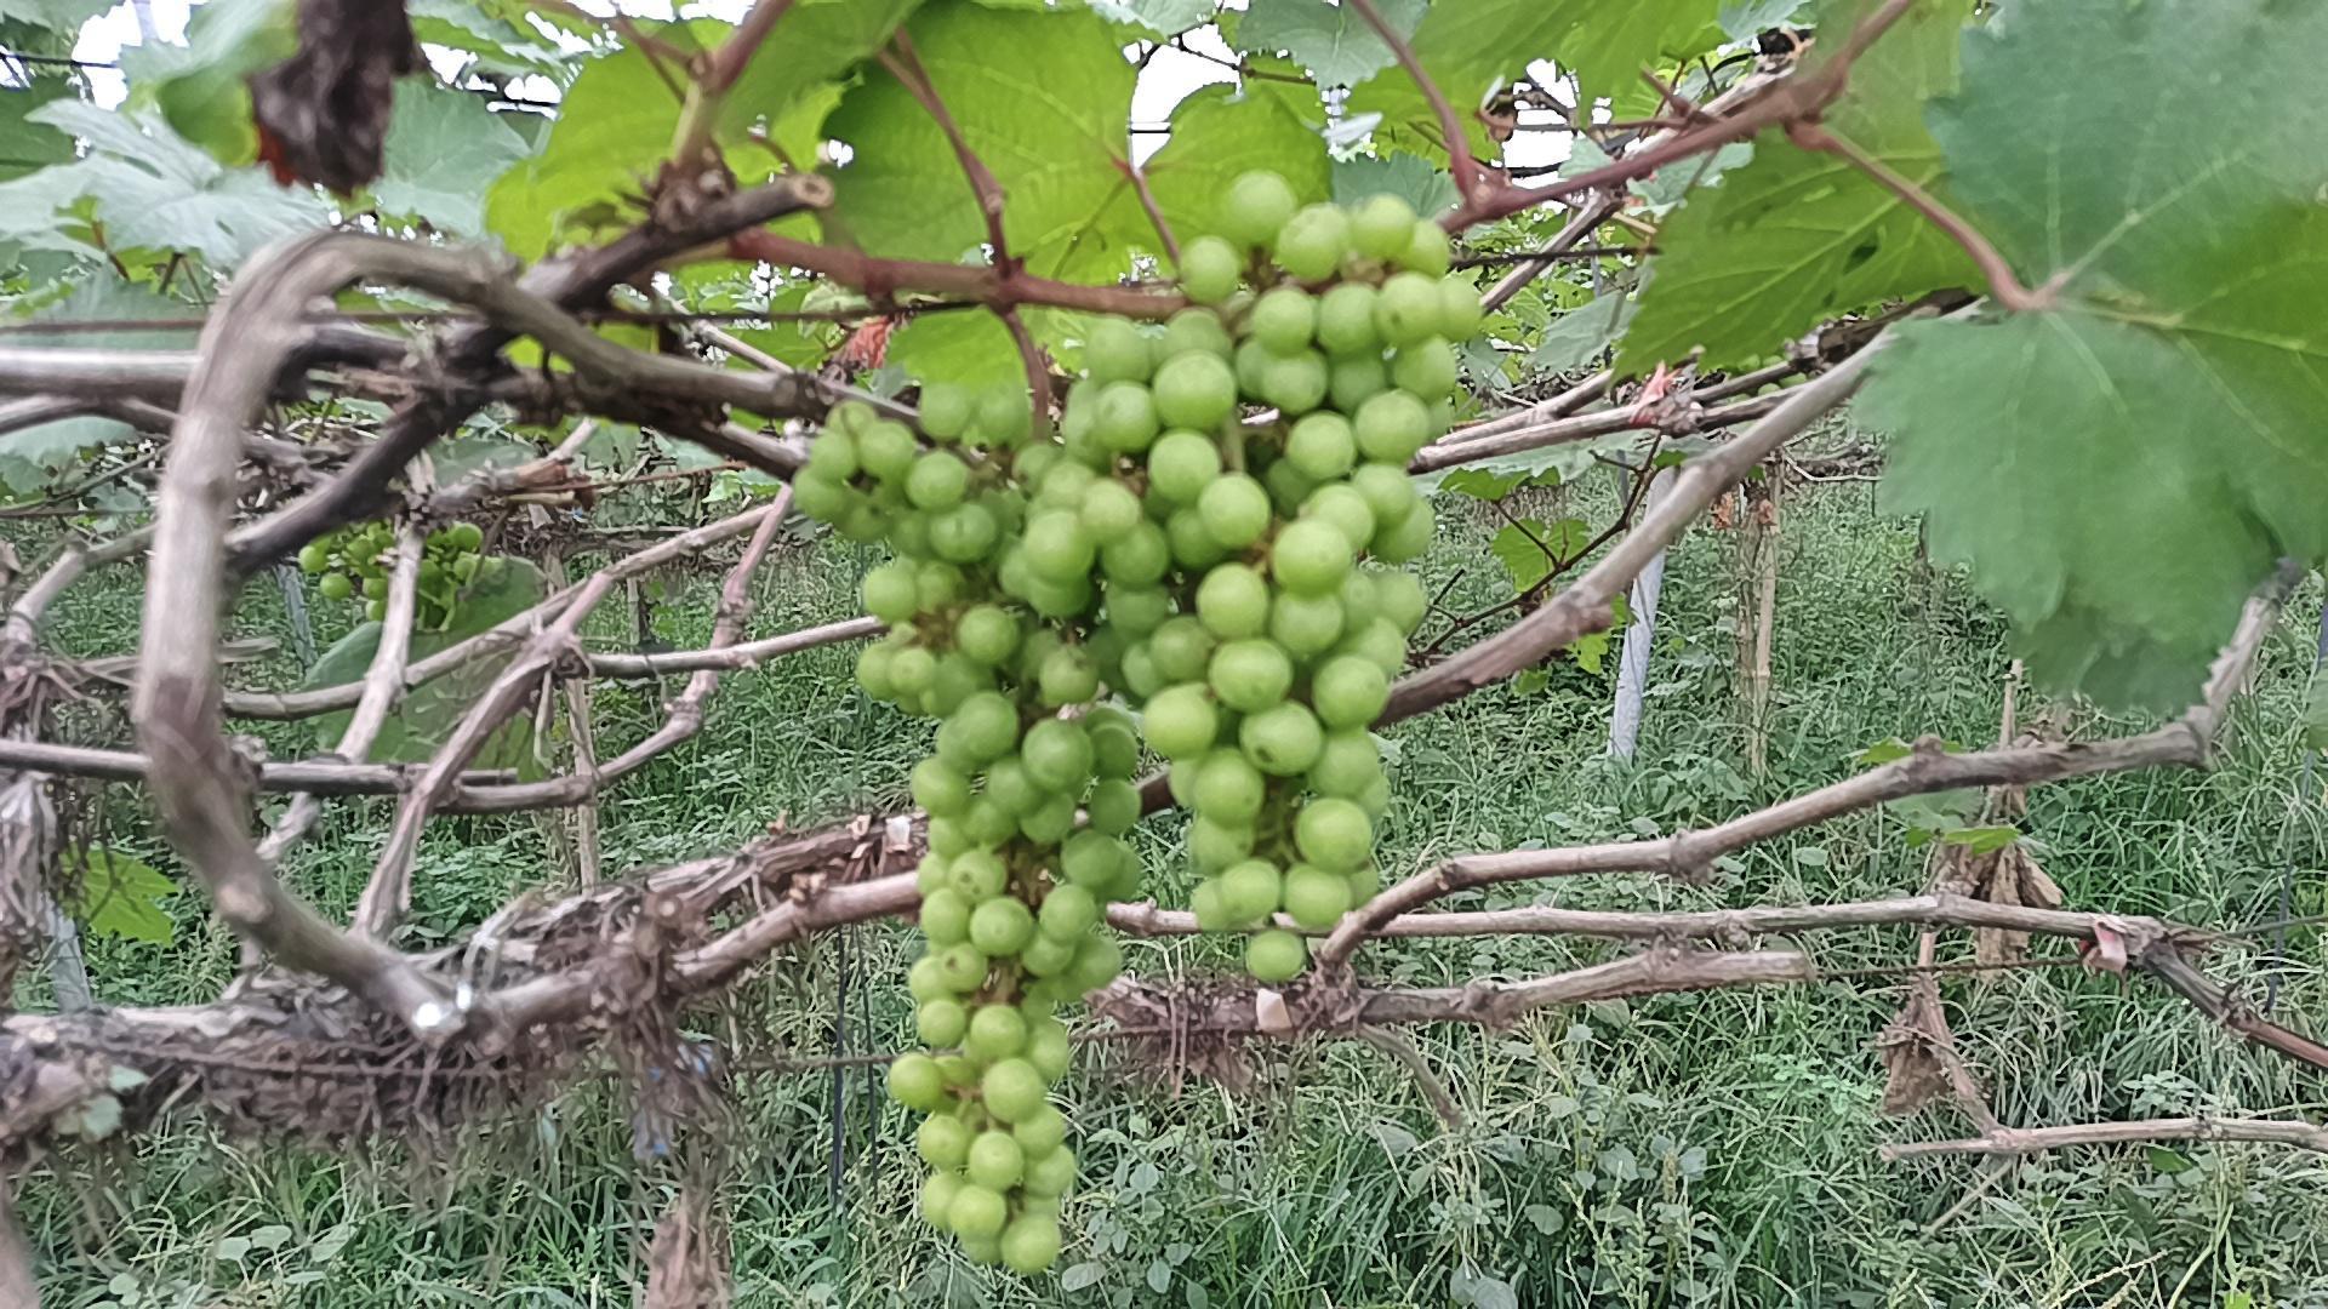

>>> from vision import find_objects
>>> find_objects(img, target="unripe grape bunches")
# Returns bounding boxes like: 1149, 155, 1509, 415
793, 379, 1142, 1273
296, 519, 508, 628
997, 171, 1485, 984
